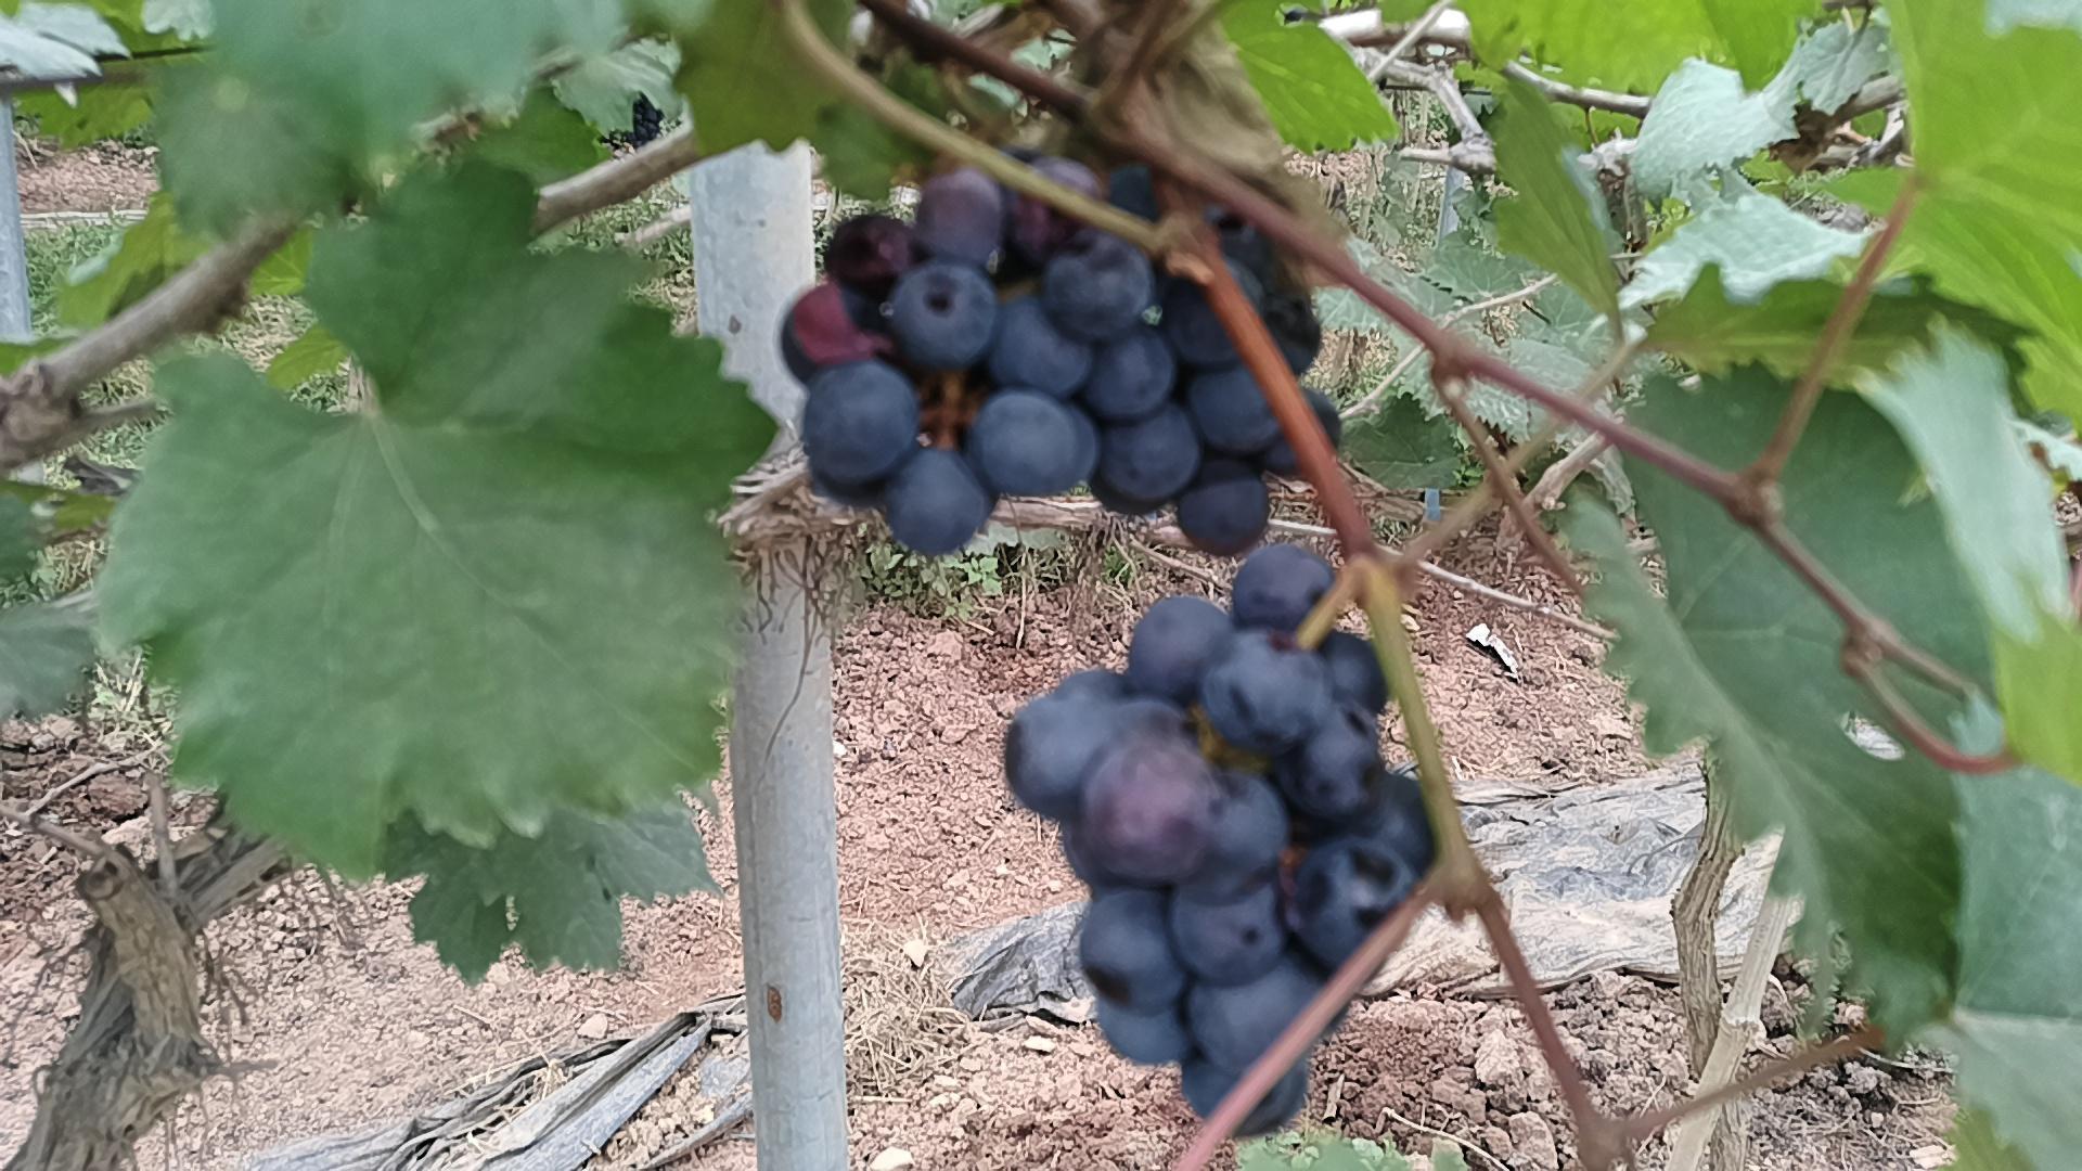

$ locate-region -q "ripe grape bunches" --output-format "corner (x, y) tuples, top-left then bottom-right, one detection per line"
(596, 93), (667, 157)
(782, 141), (1342, 555)
(1004, 545), (1434, 1140)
